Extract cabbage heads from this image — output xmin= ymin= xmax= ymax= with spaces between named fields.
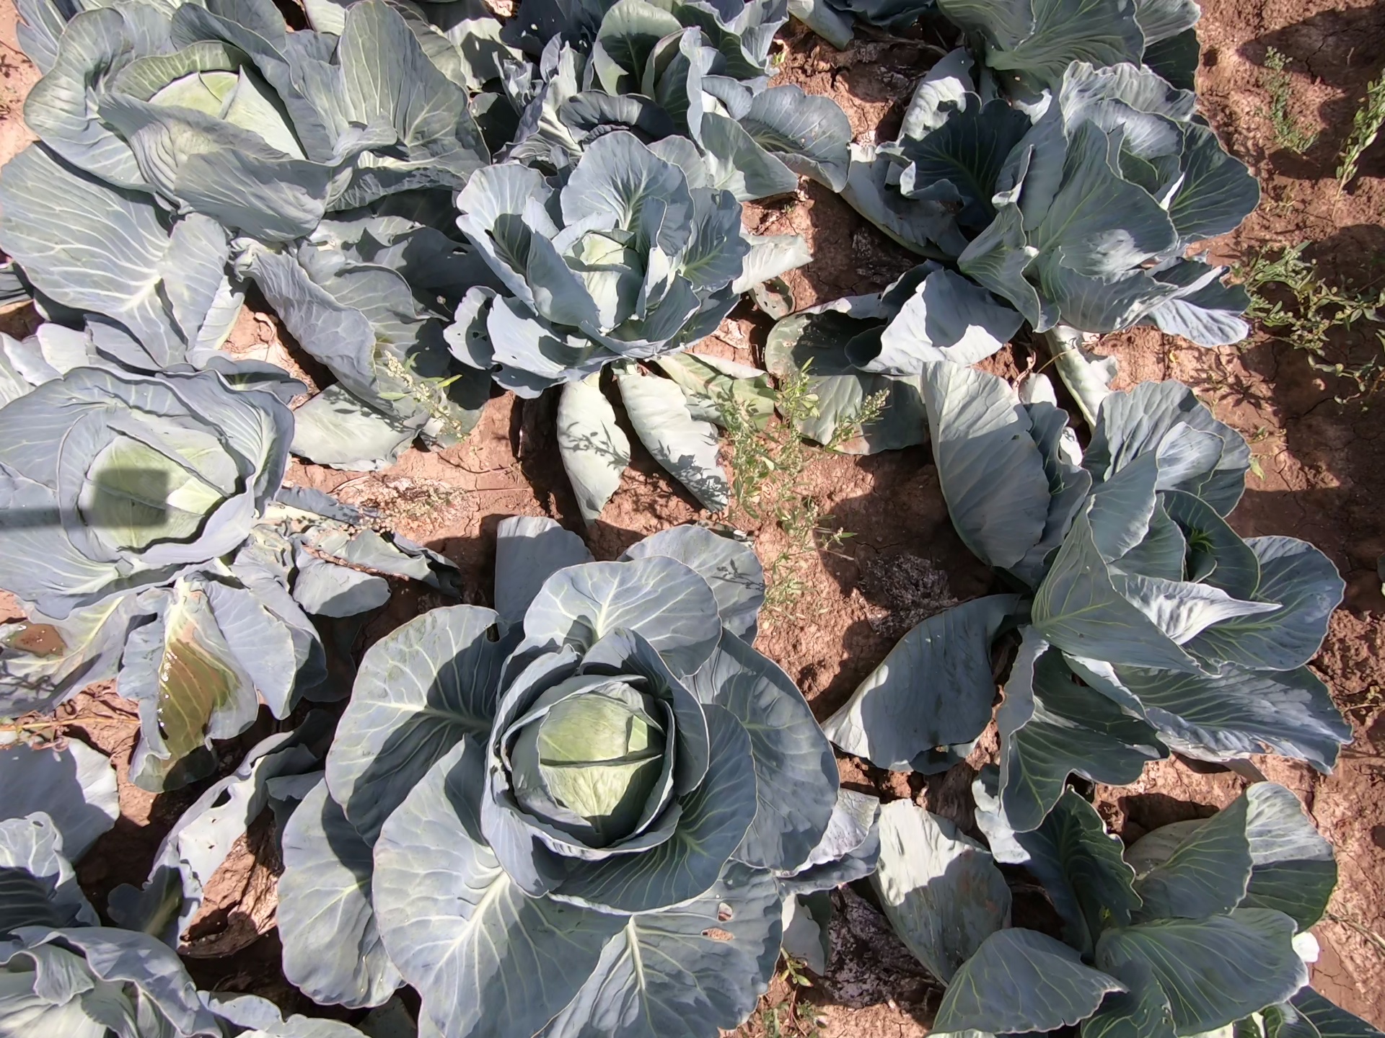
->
xmin=554 ymin=232 xmax=644 ymax=324
xmin=1125 ymin=950 xmax=1271 ymax=1037
xmin=516 ymin=678 xmax=664 ymax=842
xmin=75 ymin=427 xmax=232 ymax=560
xmin=1 ymin=970 xmax=115 ymax=1037
xmin=130 ymin=68 xmax=305 ymax=207
xmin=1059 ymin=531 xmax=1192 ymax=653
